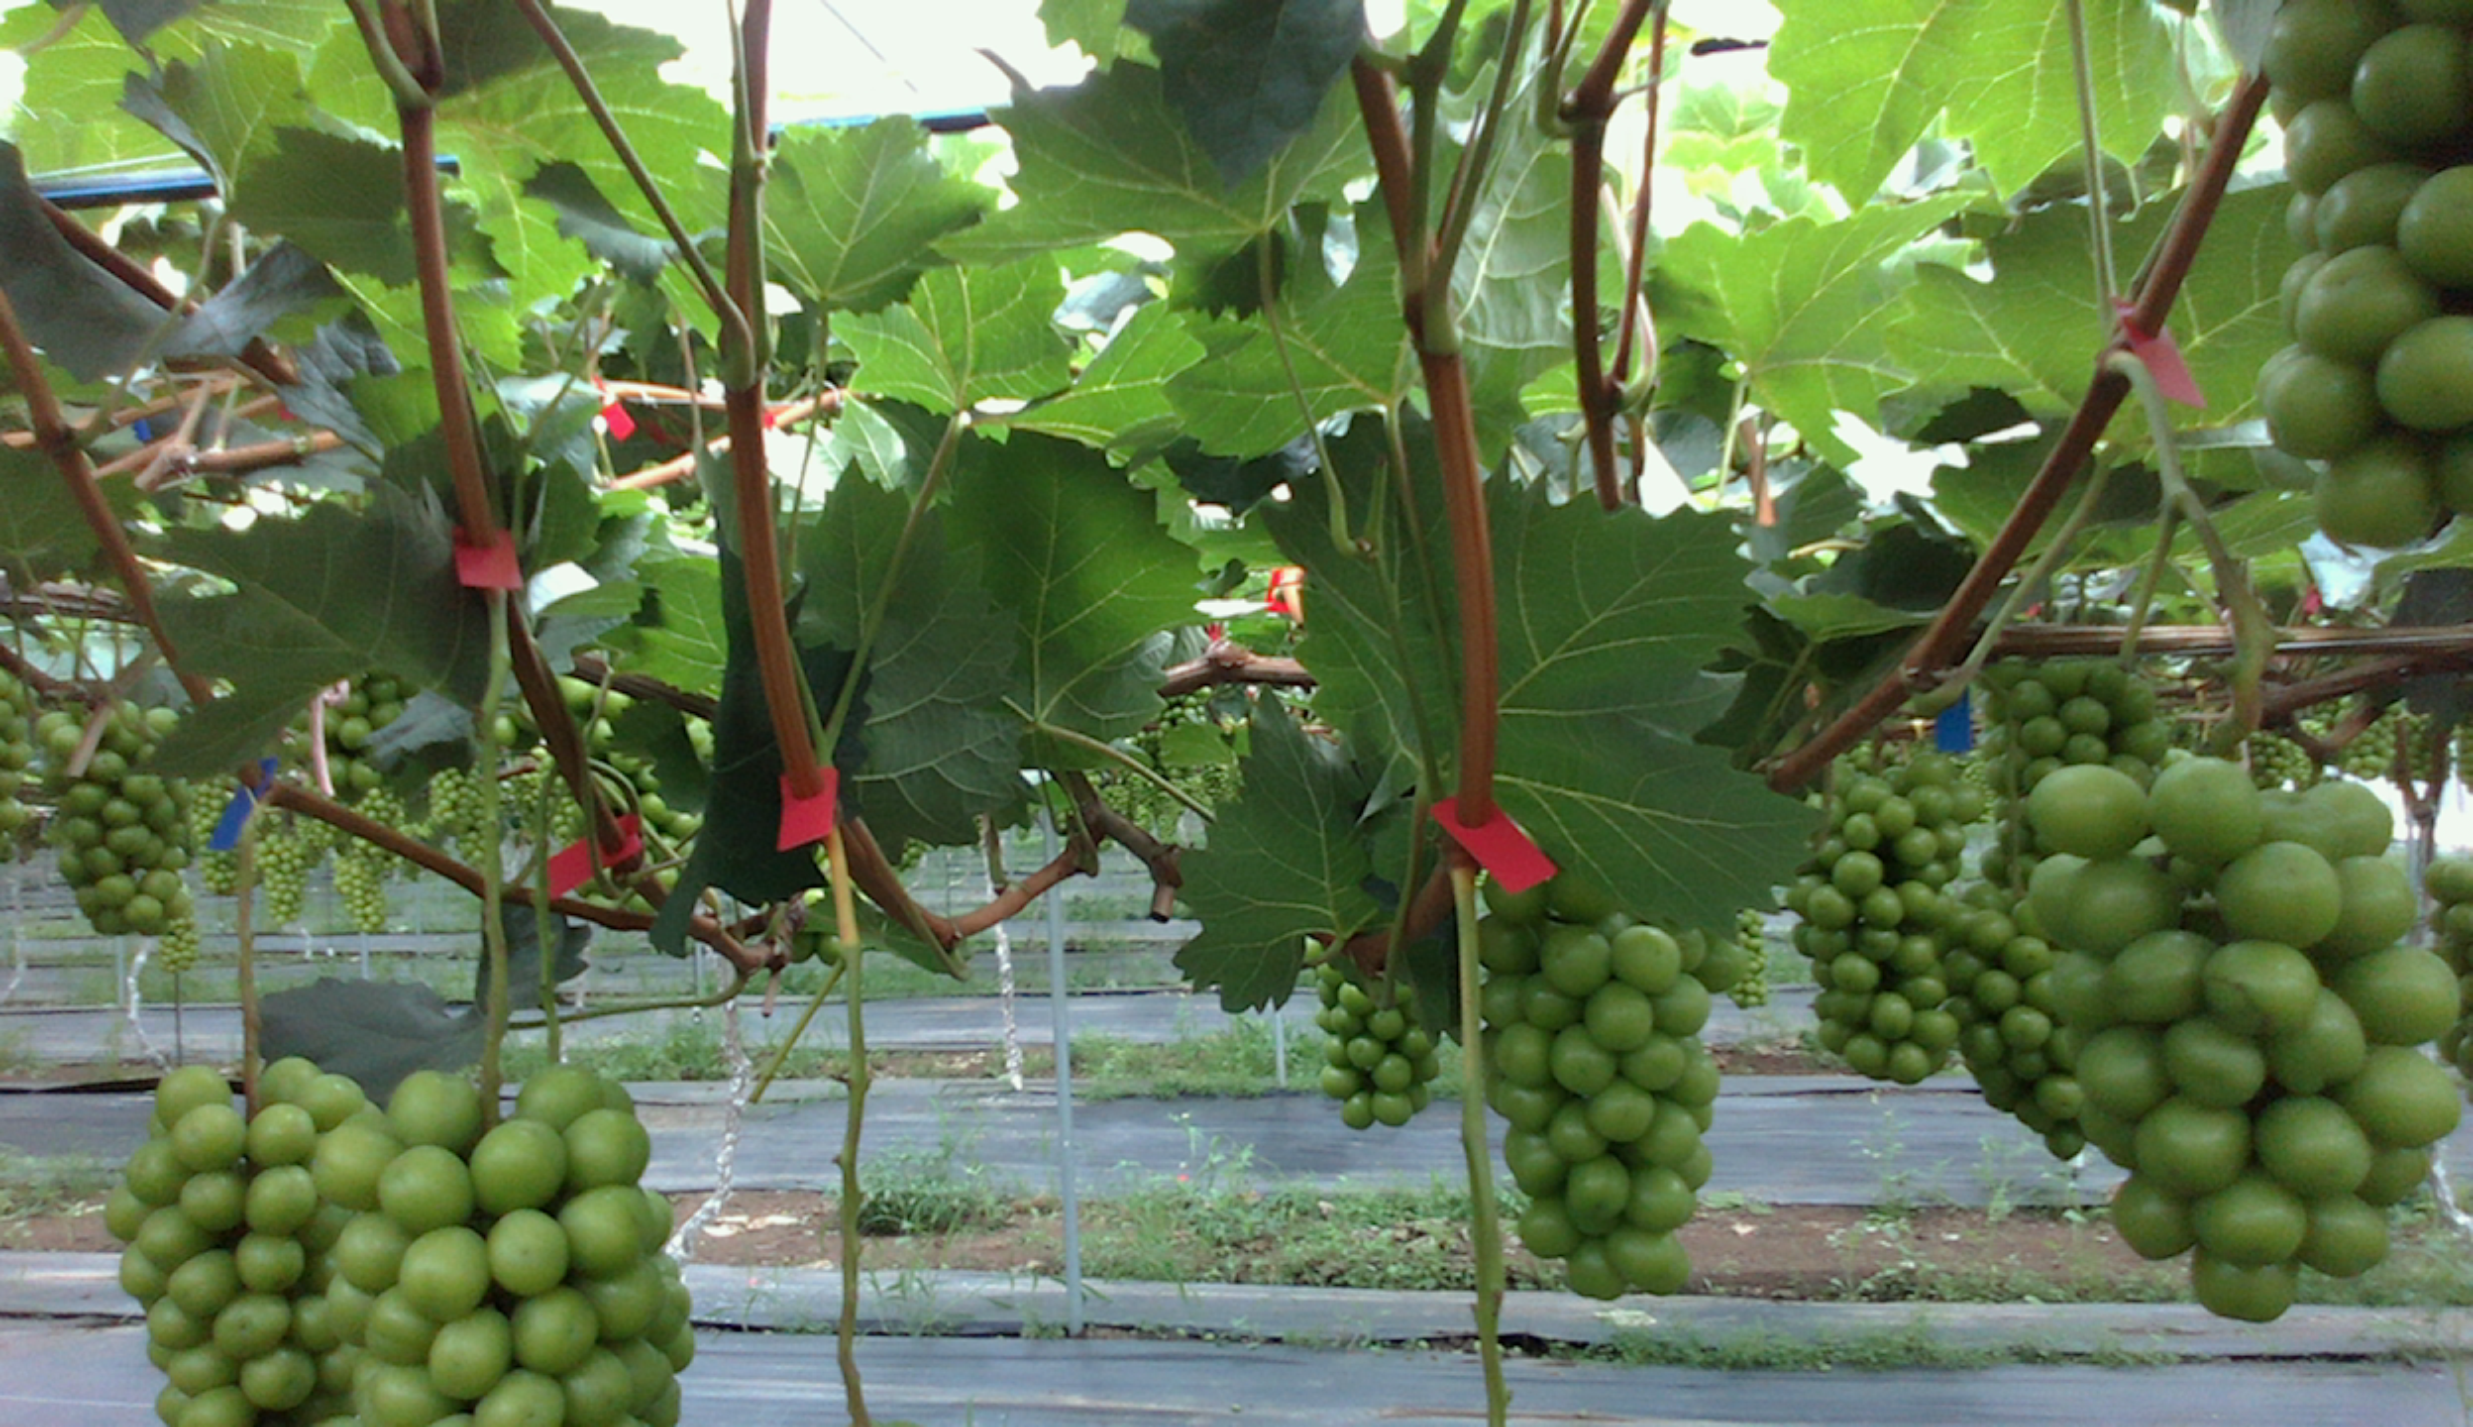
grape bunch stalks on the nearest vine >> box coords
[238,789,281,1110]
[2100,347,2277,757]
[1451,864,1514,1423]
[822,821,870,1423]
[478,587,511,1128]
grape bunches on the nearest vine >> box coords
[1476,872,1752,1304]
[105,1054,386,1425]
[2023,763,2463,1326]
[313,1062,694,1425]
[2253,0,2471,543]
